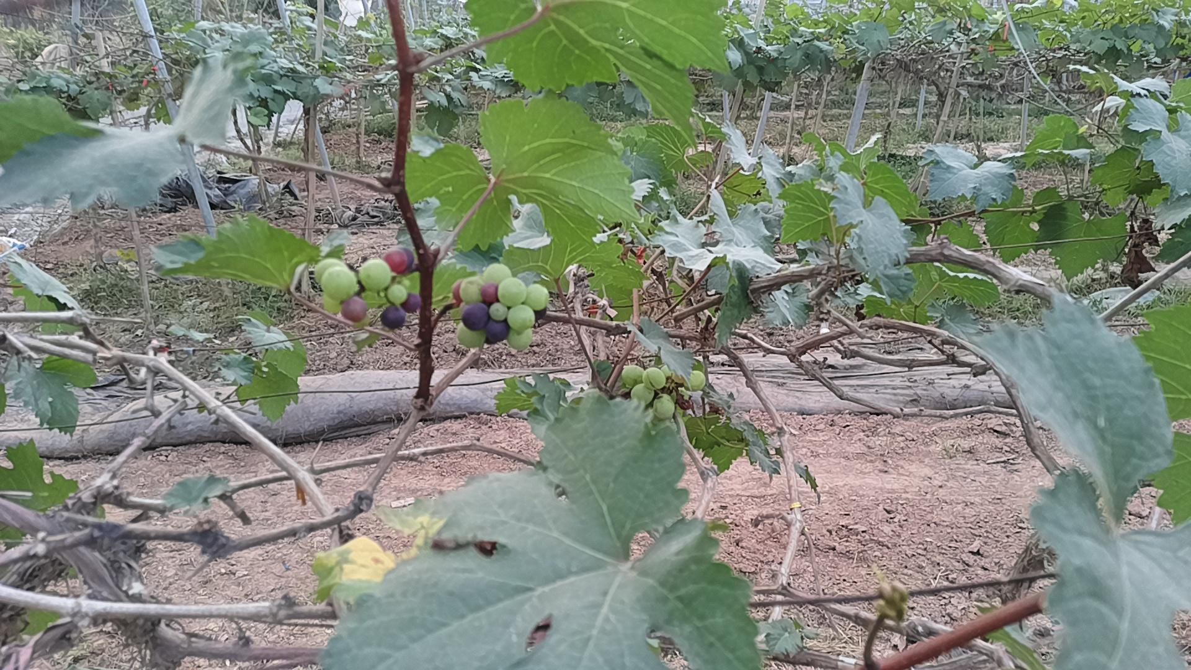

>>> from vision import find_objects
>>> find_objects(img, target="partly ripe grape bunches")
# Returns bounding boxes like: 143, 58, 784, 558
620, 364, 707, 419
314, 246, 421, 328
453, 263, 548, 350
